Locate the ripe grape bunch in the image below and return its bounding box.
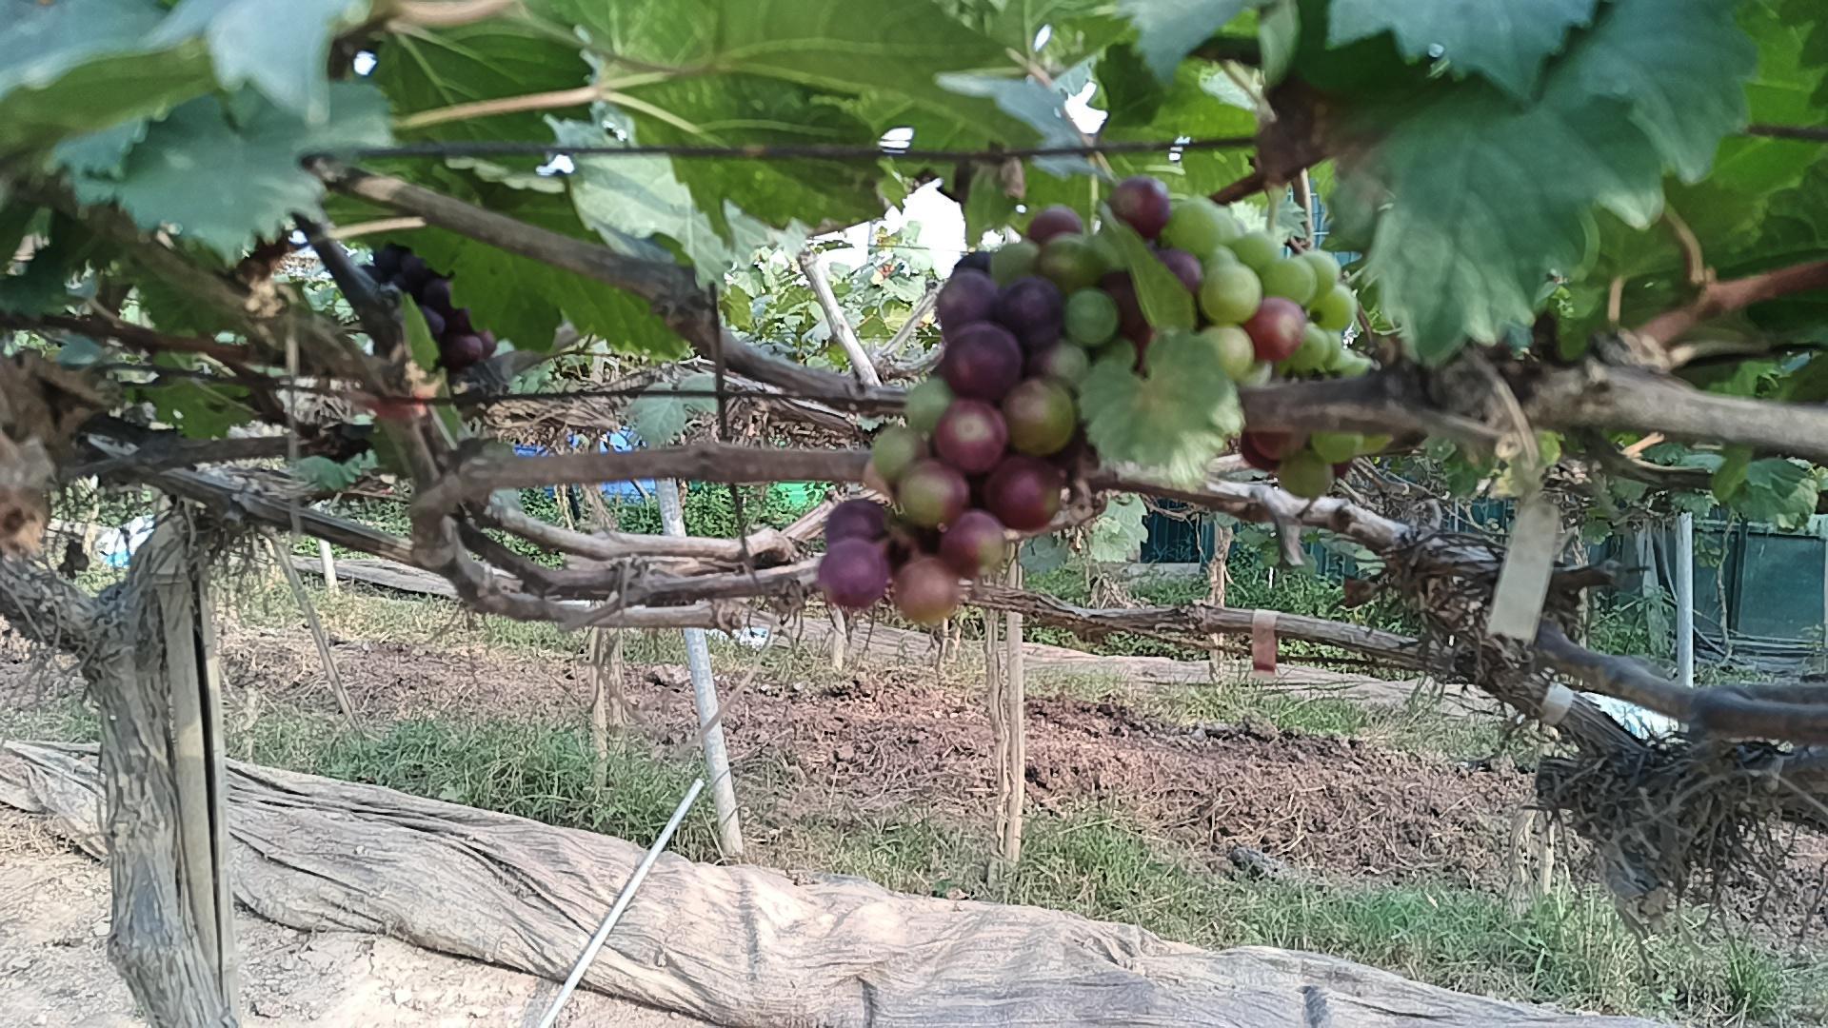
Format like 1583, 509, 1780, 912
373, 243, 496, 379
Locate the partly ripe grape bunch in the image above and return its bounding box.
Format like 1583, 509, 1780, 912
817, 175, 1395, 626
